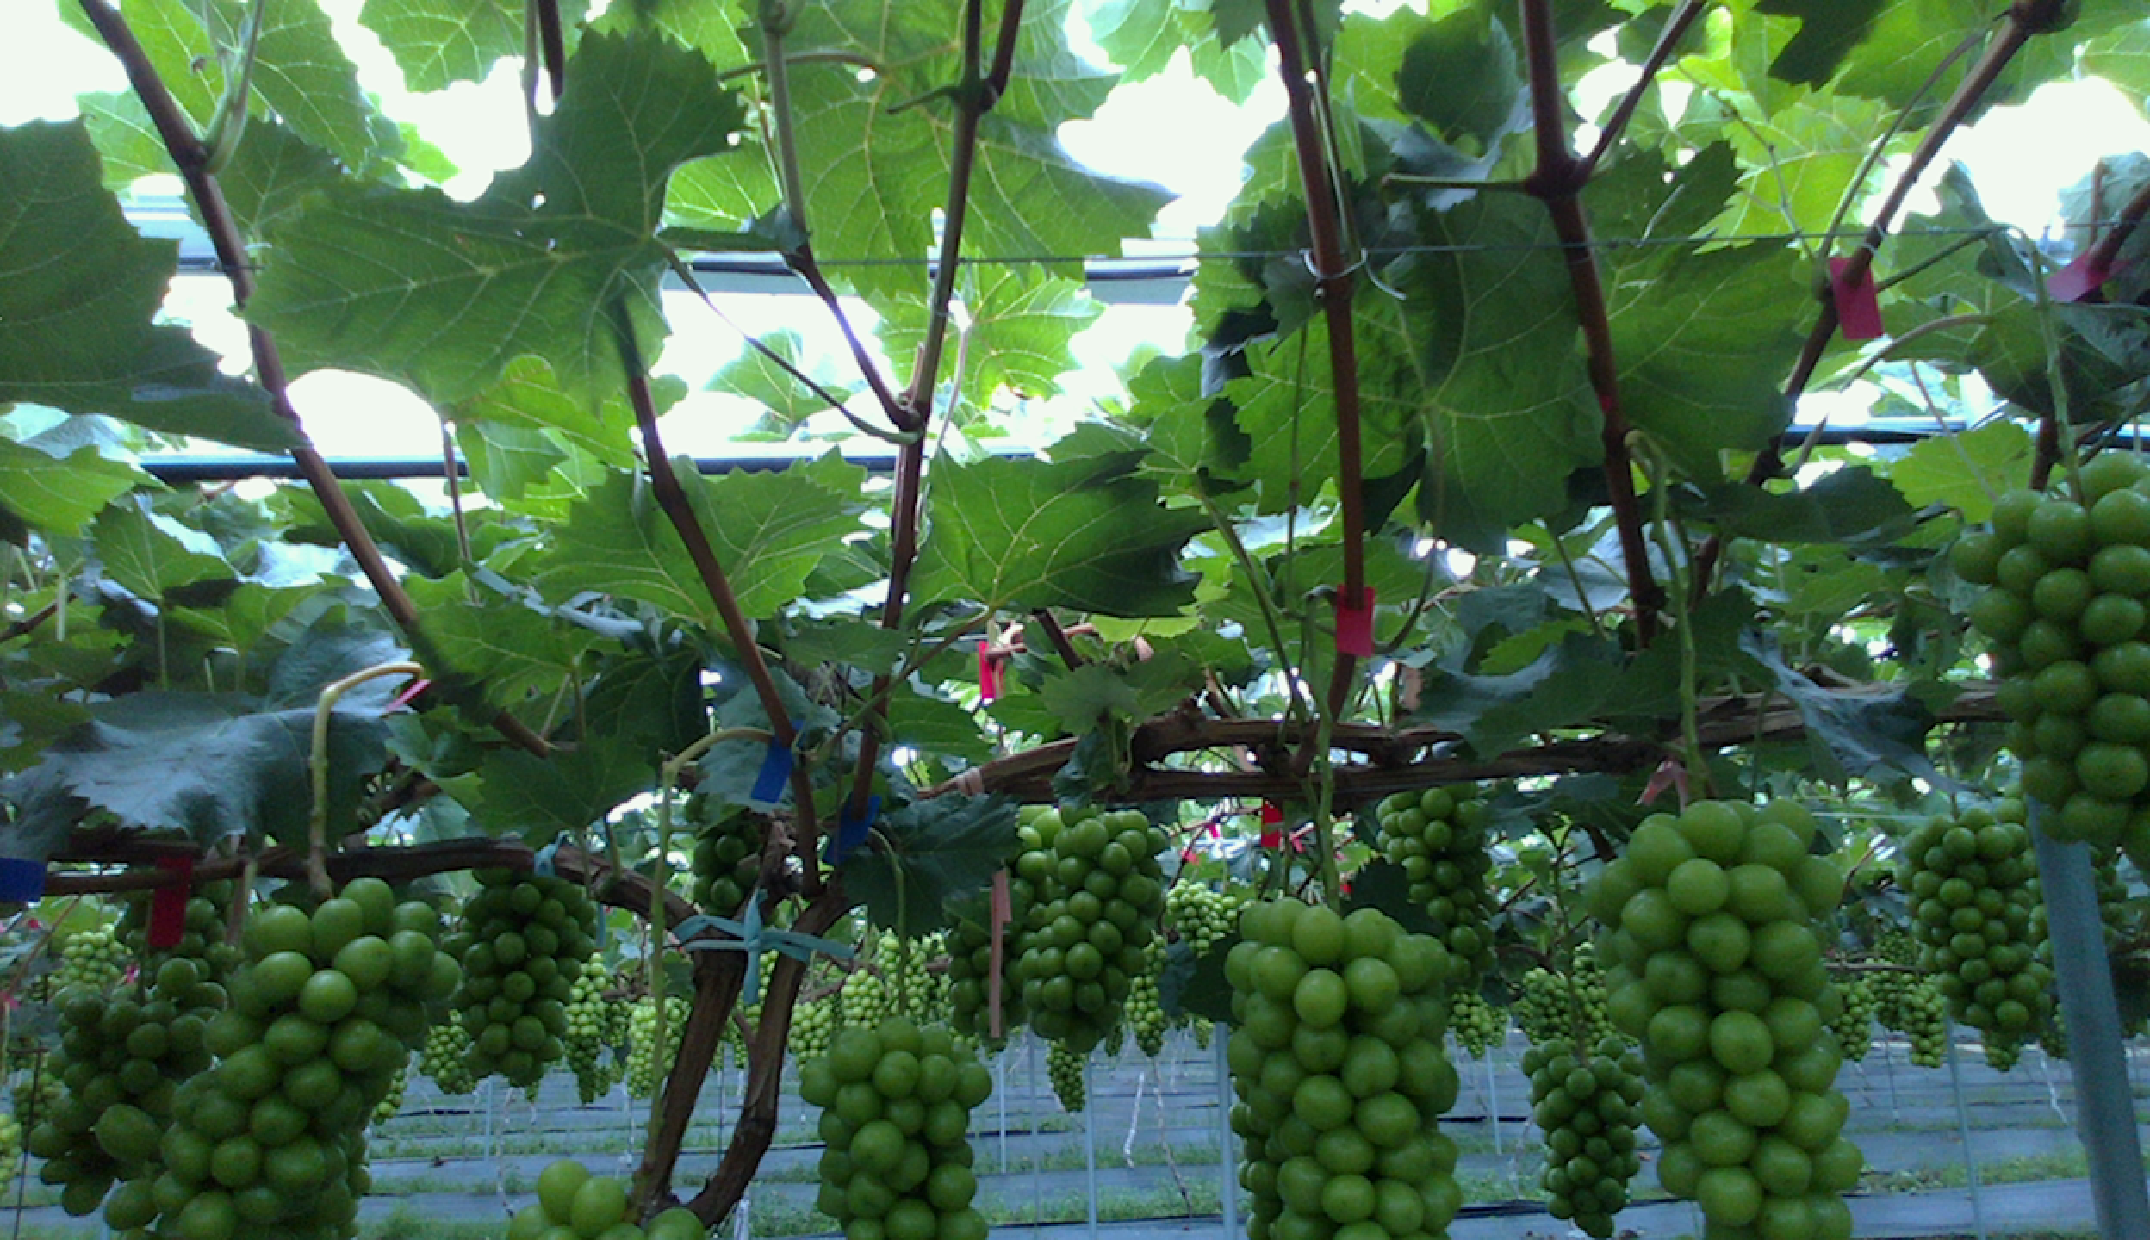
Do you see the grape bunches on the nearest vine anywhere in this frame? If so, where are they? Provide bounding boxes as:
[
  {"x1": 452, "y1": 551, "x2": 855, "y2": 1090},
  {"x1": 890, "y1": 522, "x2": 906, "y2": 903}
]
[
  {"x1": 153, "y1": 875, "x2": 462, "y2": 1238},
  {"x1": 510, "y1": 1157, "x2": 706, "y2": 1238},
  {"x1": 801, "y1": 1018, "x2": 992, "y2": 1238},
  {"x1": 1227, "y1": 896, "x2": 1461, "y2": 1238},
  {"x1": 1580, "y1": 799, "x2": 1862, "y2": 1238},
  {"x1": 1947, "y1": 449, "x2": 2148, "y2": 858}
]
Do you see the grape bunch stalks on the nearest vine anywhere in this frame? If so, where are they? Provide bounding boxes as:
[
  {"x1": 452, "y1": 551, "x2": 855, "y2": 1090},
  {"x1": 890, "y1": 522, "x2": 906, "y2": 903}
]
[
  {"x1": 1299, "y1": 586, "x2": 1340, "y2": 911},
  {"x1": 1625, "y1": 432, "x2": 1704, "y2": 797},
  {"x1": 868, "y1": 828, "x2": 911, "y2": 1014},
  {"x1": 636, "y1": 727, "x2": 768, "y2": 1223},
  {"x1": 1874, "y1": 220, "x2": 2081, "y2": 499},
  {"x1": 308, "y1": 660, "x2": 419, "y2": 901}
]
